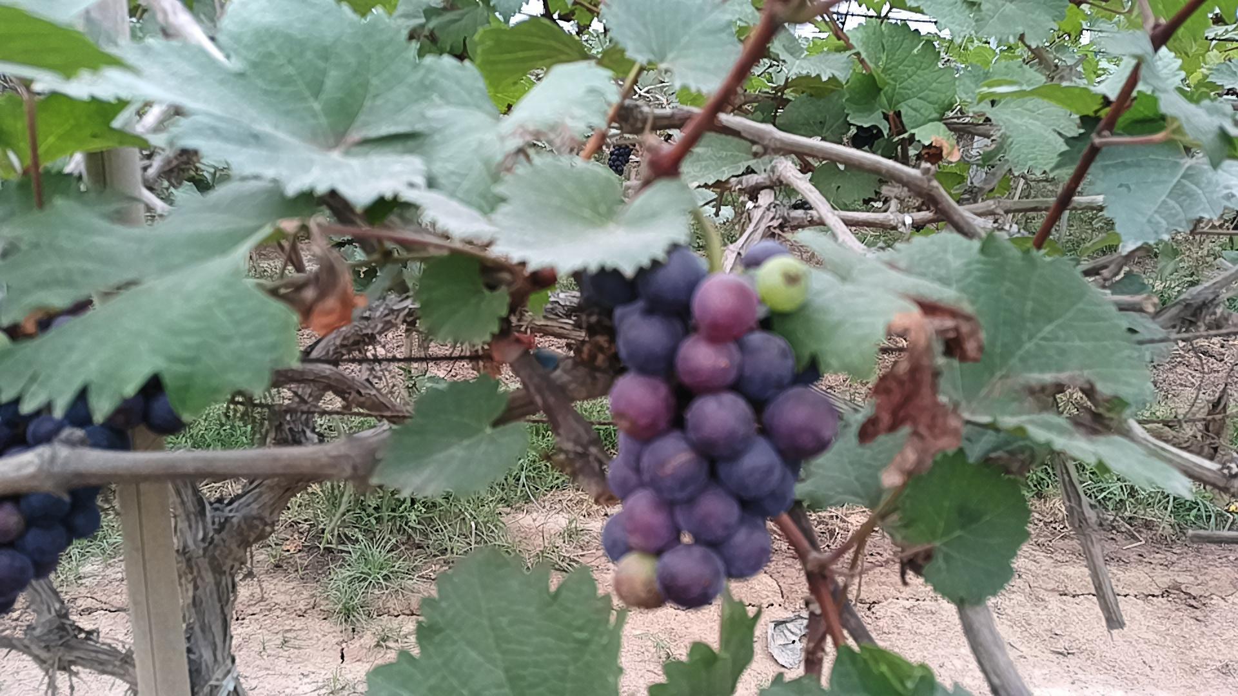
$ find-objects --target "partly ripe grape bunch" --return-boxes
[581,240,838,608]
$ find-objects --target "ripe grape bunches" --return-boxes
[0,376,184,612]
[607,145,633,175]
[849,126,883,150]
